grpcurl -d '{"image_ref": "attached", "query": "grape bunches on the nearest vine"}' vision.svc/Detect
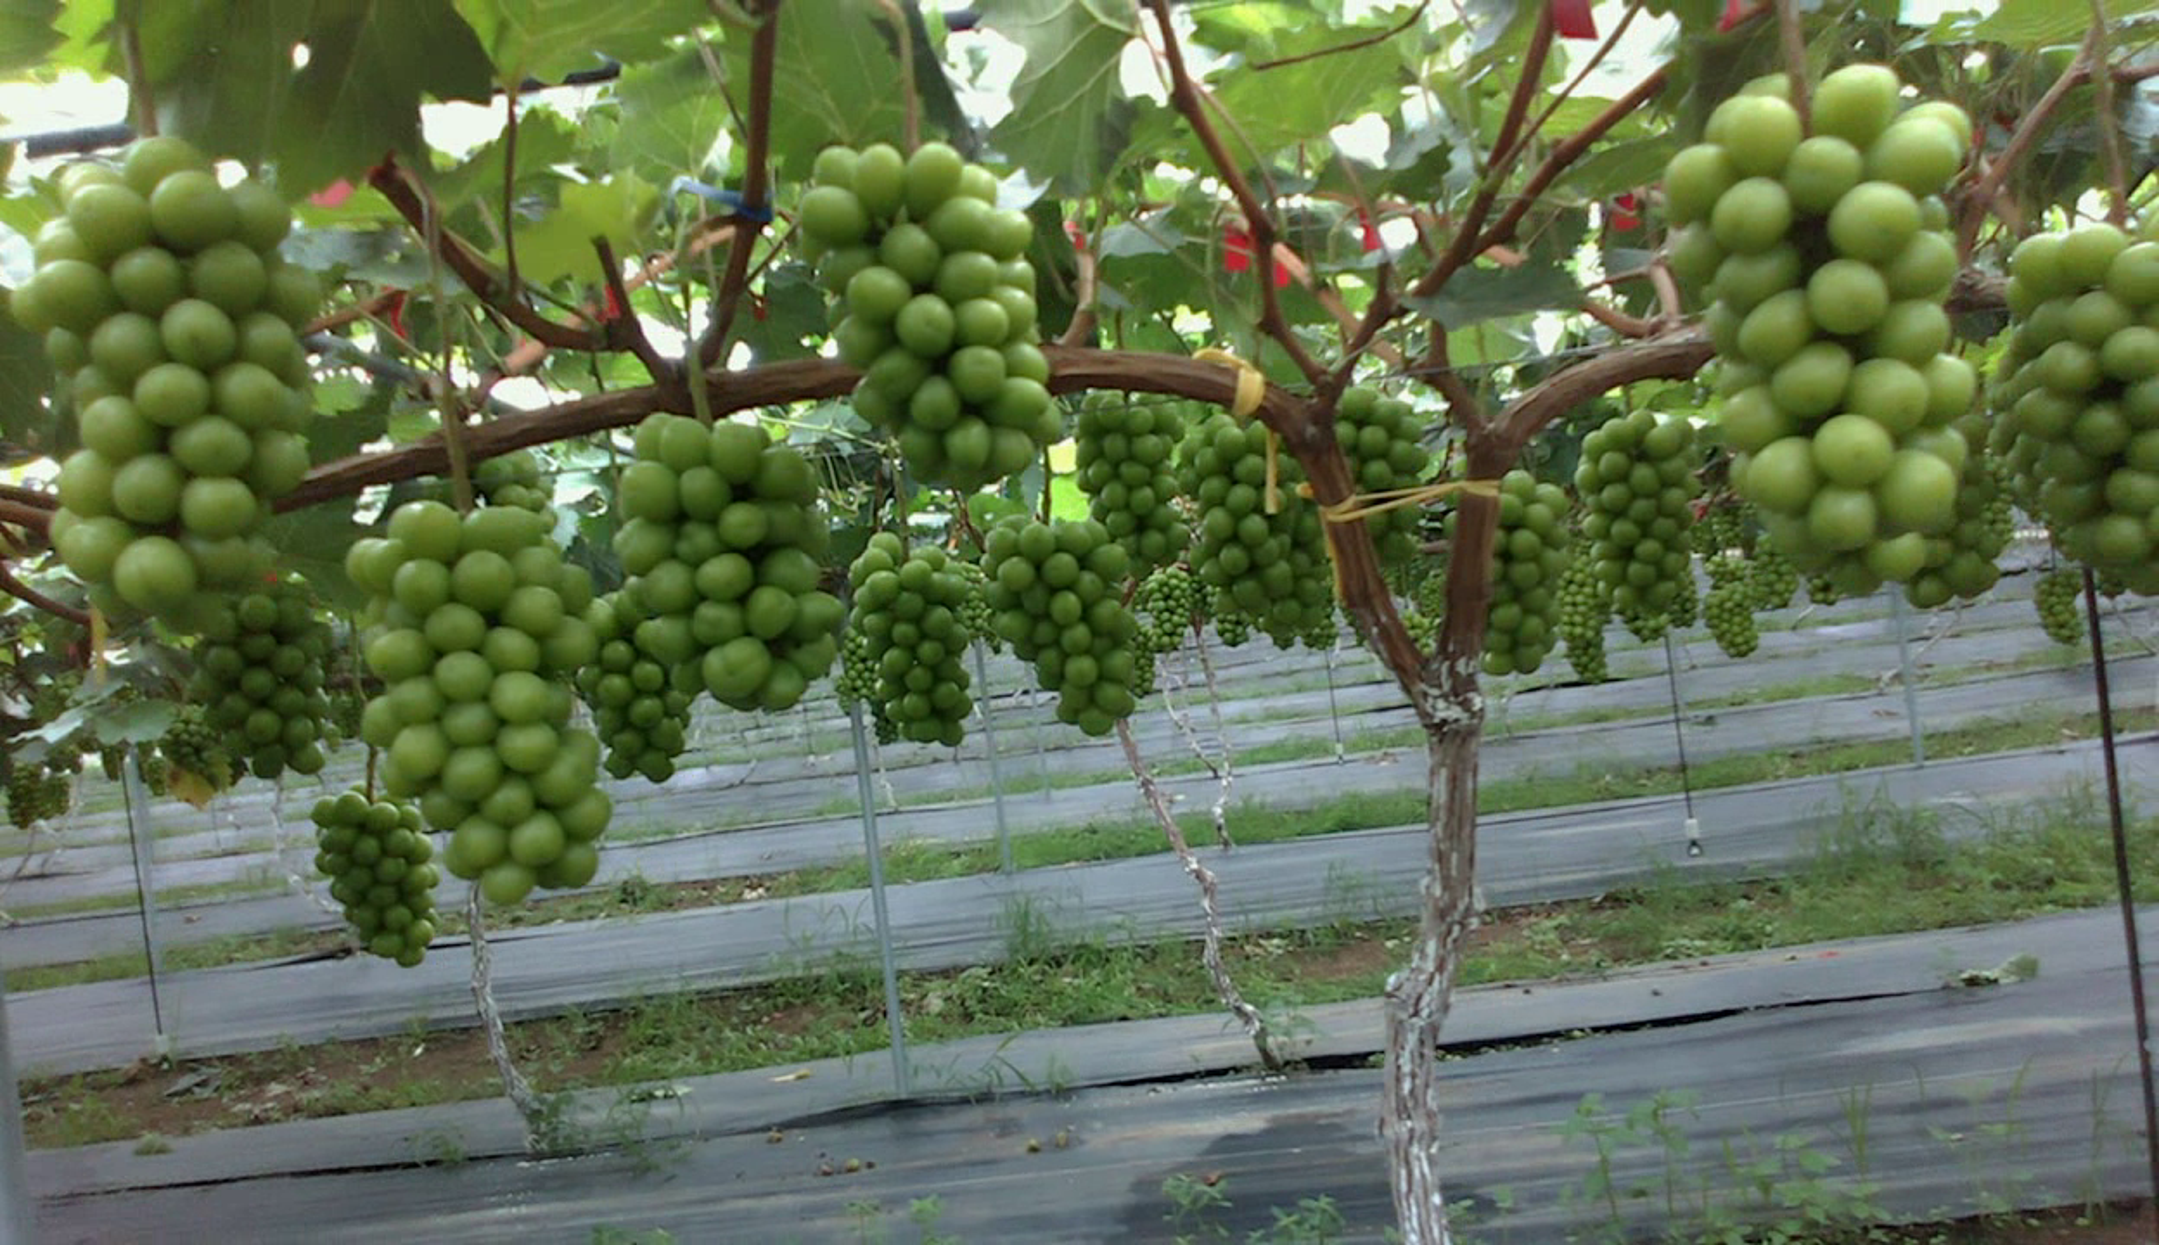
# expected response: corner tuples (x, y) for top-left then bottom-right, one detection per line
(14, 135), (322, 638)
(2005, 216), (2157, 597)
(1664, 61), (1981, 595)
(616, 413), (848, 711)
(796, 142), (1060, 479)
(346, 500), (612, 910)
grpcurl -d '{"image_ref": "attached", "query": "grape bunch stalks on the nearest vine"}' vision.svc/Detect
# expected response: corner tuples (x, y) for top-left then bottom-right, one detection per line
(2085, 2), (2131, 227)
(121, 5), (154, 135)
(673, 206), (713, 429)
(879, 0), (919, 149)
(1775, 0), (1815, 137)
(401, 171), (472, 514)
